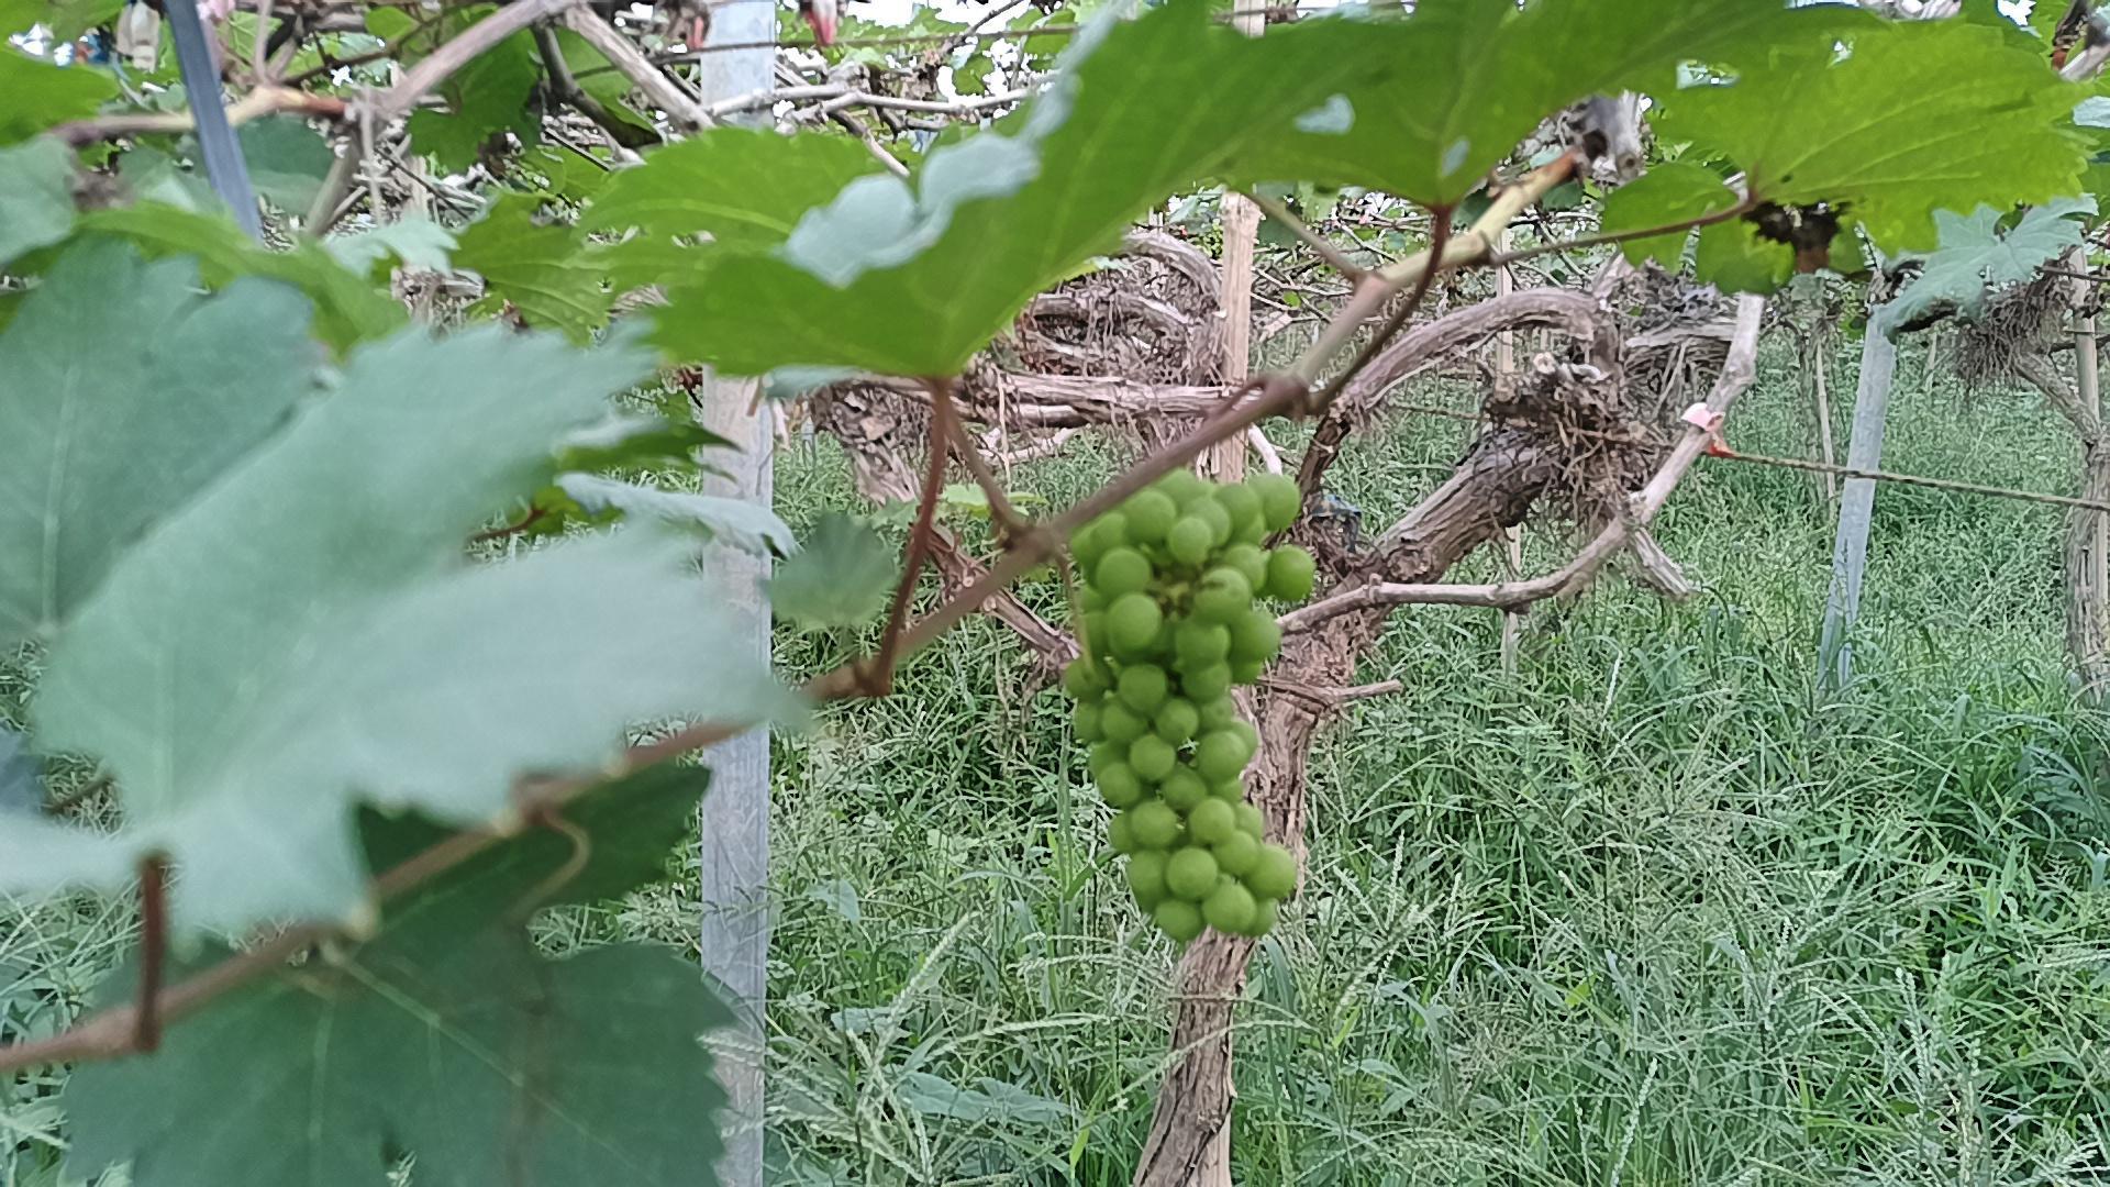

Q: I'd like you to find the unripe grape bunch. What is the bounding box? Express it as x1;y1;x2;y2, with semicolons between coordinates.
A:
1064;470;1314;942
